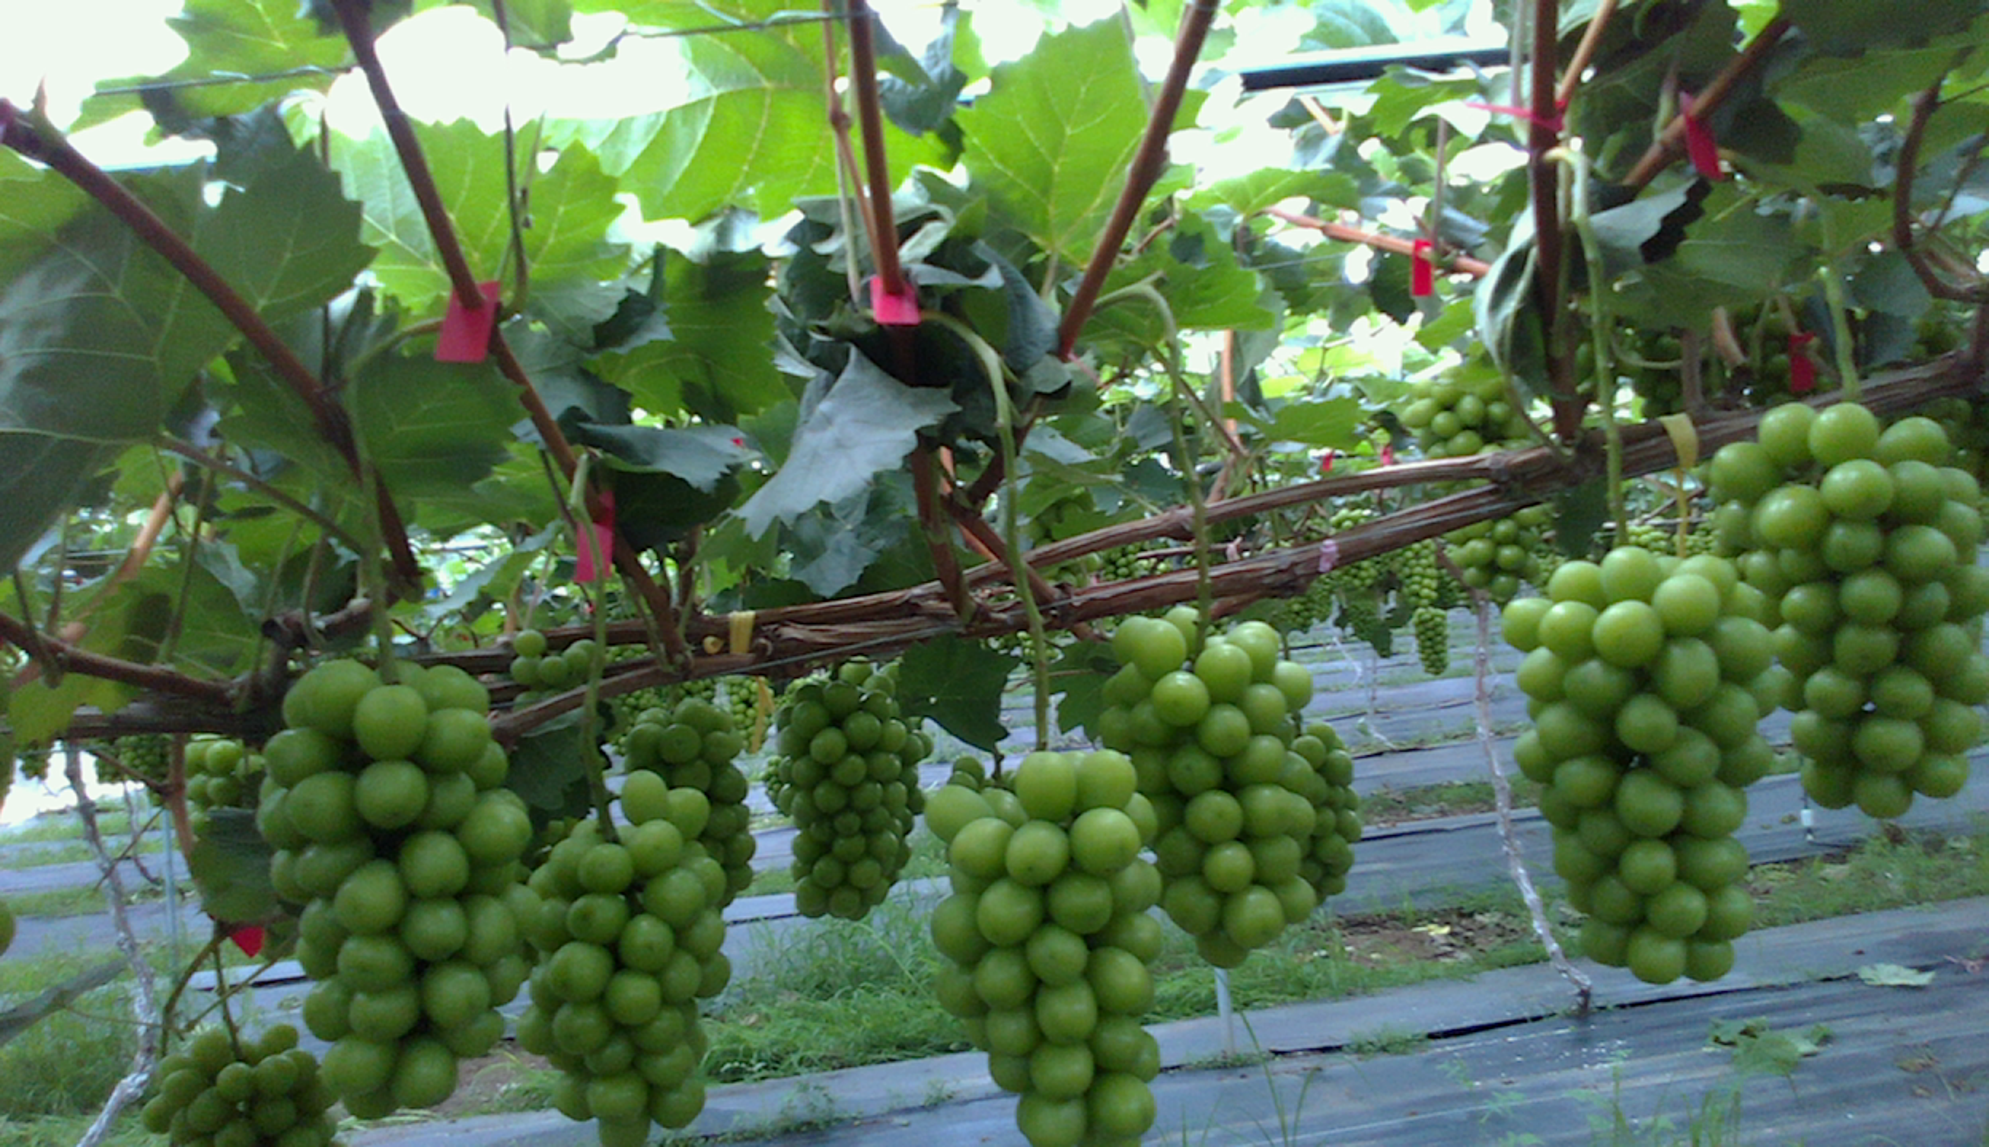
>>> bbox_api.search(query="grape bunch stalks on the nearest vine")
[1544,145,1629,546]
[567,452,618,843]
[918,309,1052,749]
[1089,284,1208,655]
[339,315,446,683]
[1822,261,1857,400]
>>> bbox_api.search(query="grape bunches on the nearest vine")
[1503,548,1782,985]
[516,771,730,1145]
[257,660,545,1122]
[924,749,1165,1145]
[1098,607,1320,967]
[1707,401,1987,817]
